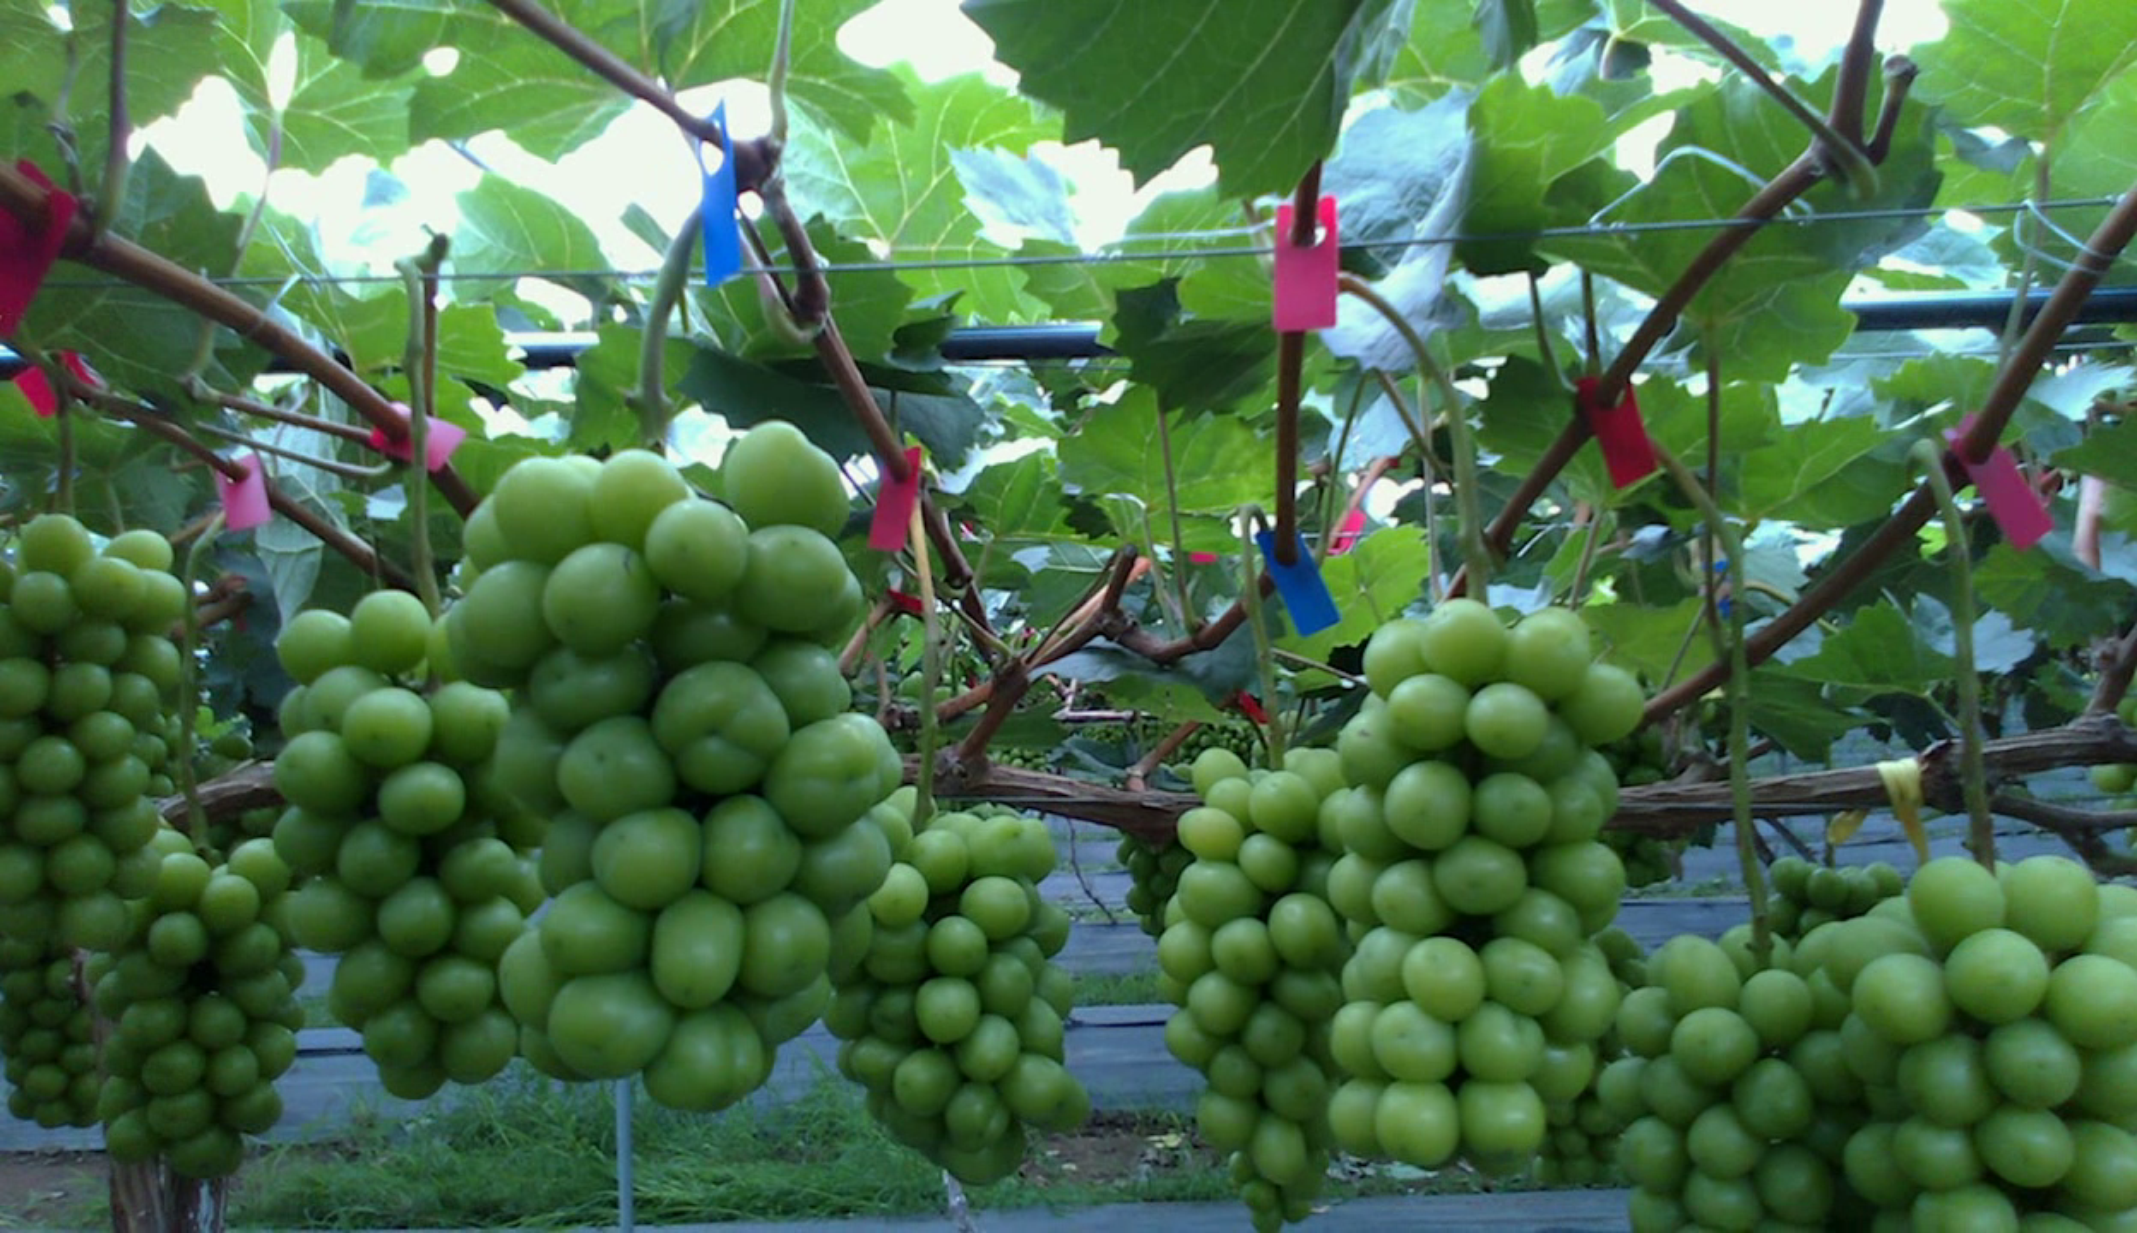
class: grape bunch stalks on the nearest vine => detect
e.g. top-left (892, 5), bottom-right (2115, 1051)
top-left (57, 392), bottom-right (75, 512)
top-left (1241, 502), bottom-right (1284, 767)
top-left (1683, 479), bottom-right (1772, 969)
top-left (180, 522), bottom-right (217, 855)
top-left (909, 527), bottom-right (937, 829)
top-left (623, 211), bottom-right (697, 450)
top-left (392, 233), bottom-right (443, 610)
top-left (1358, 286), bottom-right (1486, 601)
top-left (1914, 437), bottom-right (1993, 870)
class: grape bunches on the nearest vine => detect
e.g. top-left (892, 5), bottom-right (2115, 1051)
top-left (0, 515), bottom-right (182, 968)
top-left (824, 789), bottom-right (1094, 1187)
top-left (274, 589), bottom-right (543, 1103)
top-left (1820, 855), bottom-right (2135, 1231)
top-left (447, 421), bottom-right (902, 1110)
top-left (86, 829), bottom-right (307, 1180)
top-left (1598, 921), bottom-right (1884, 1231)
top-left (1152, 747), bottom-right (1351, 1187)
top-left (1327, 596), bottom-right (1647, 1176)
